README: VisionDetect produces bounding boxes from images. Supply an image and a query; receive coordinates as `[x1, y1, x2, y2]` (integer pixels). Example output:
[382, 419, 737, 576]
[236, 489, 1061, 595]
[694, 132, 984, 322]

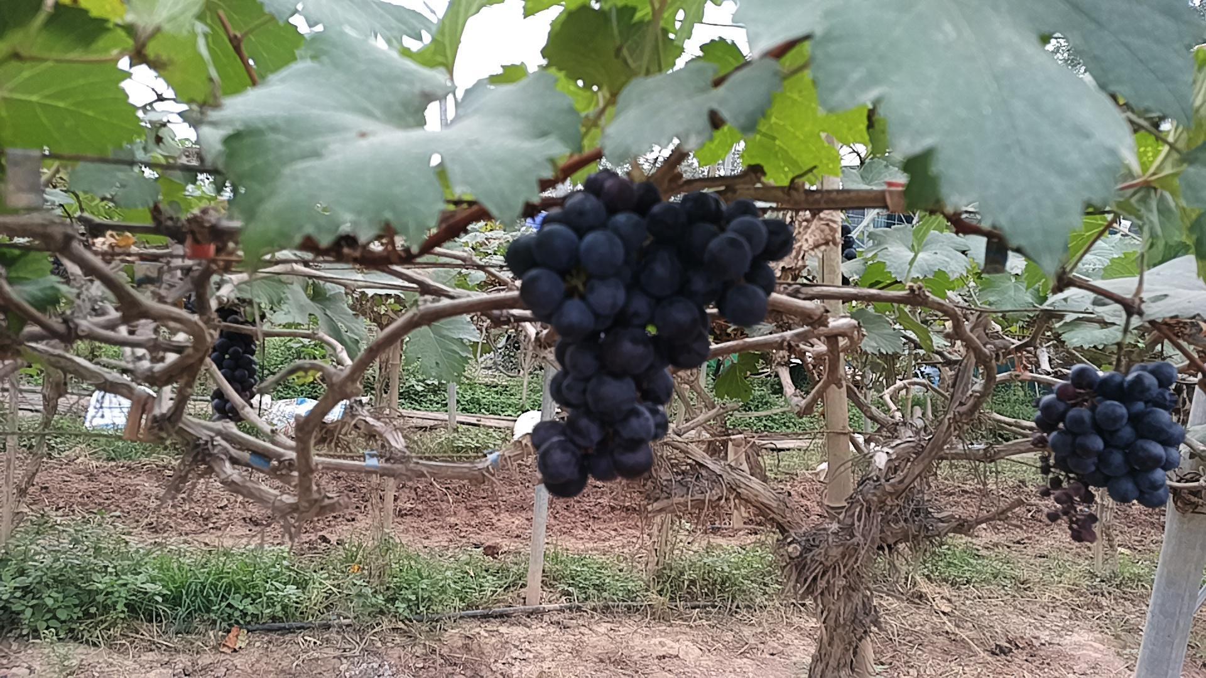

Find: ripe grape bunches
[1031, 361, 1187, 542]
[209, 303, 256, 422]
[506, 169, 791, 497]
[839, 215, 858, 286]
